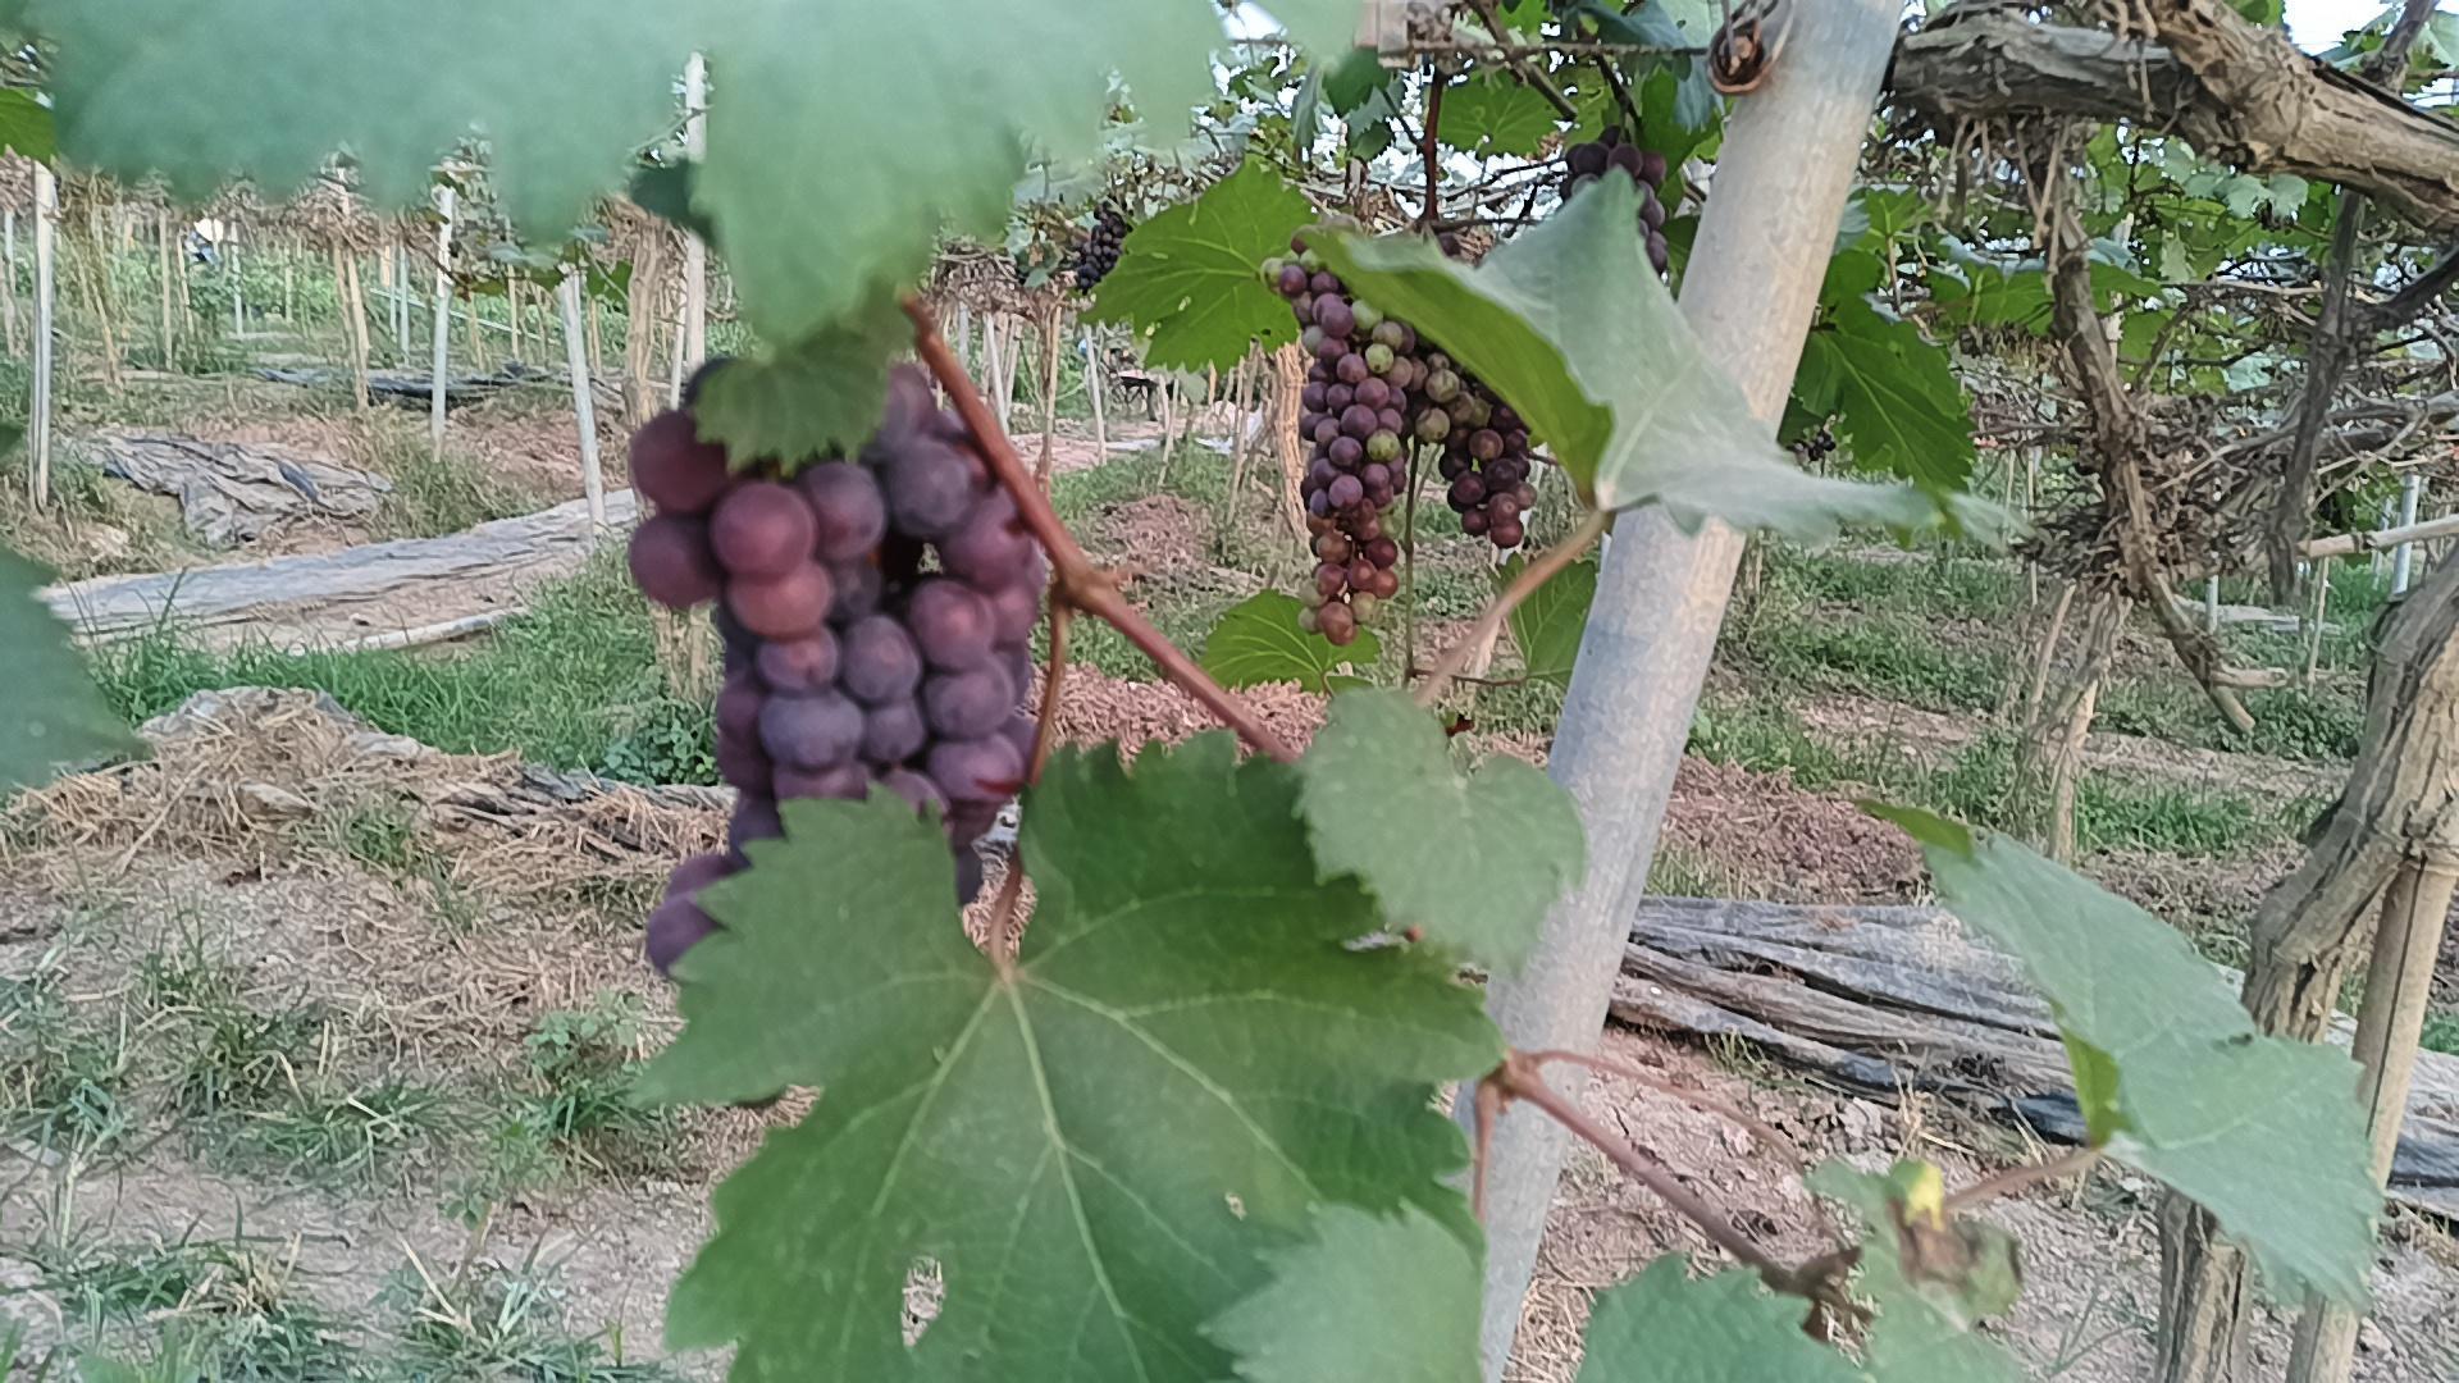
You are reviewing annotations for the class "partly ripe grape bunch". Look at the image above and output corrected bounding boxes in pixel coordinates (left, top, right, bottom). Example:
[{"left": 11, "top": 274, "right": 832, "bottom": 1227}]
[{"left": 1276, "top": 237, "right": 1533, "bottom": 645}]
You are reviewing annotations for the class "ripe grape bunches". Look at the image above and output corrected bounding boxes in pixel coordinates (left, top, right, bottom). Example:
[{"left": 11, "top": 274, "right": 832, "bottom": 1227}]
[
  {"left": 629, "top": 359, "right": 1045, "bottom": 969},
  {"left": 1560, "top": 125, "right": 1665, "bottom": 273},
  {"left": 1072, "top": 201, "right": 1131, "bottom": 291}
]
